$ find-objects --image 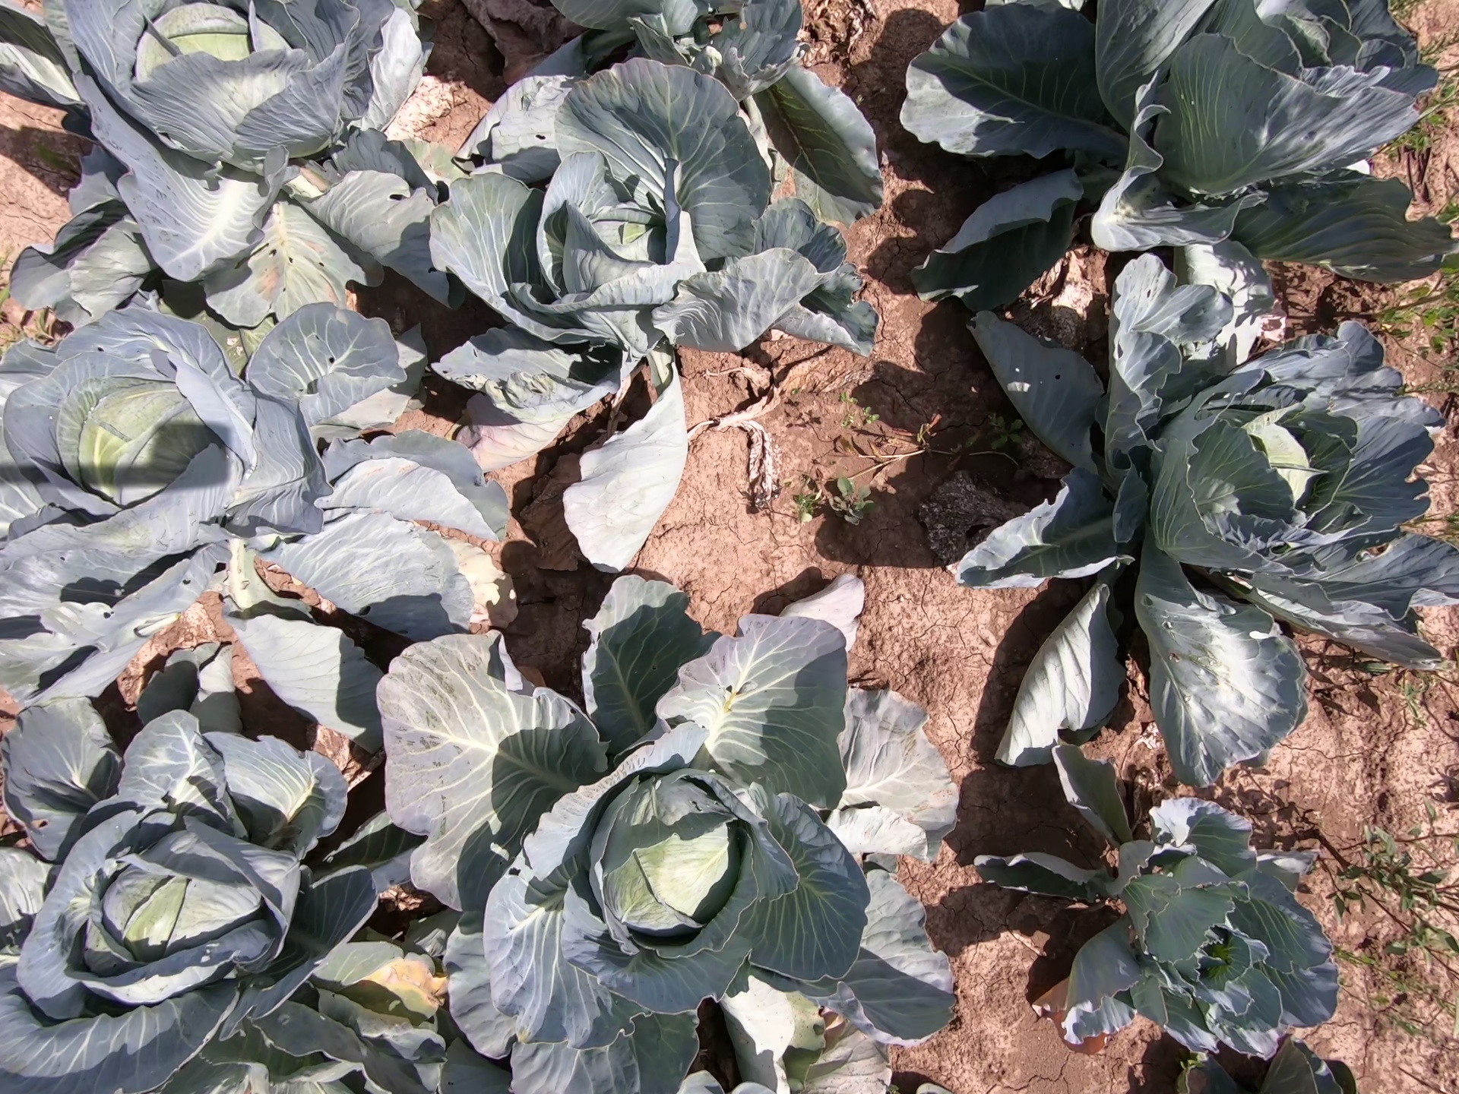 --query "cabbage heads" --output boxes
[1173,416,1312,547]
[597,779,745,938]
[570,207,680,310]
[61,373,240,533]
[132,4,305,172]
[82,830,263,990]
